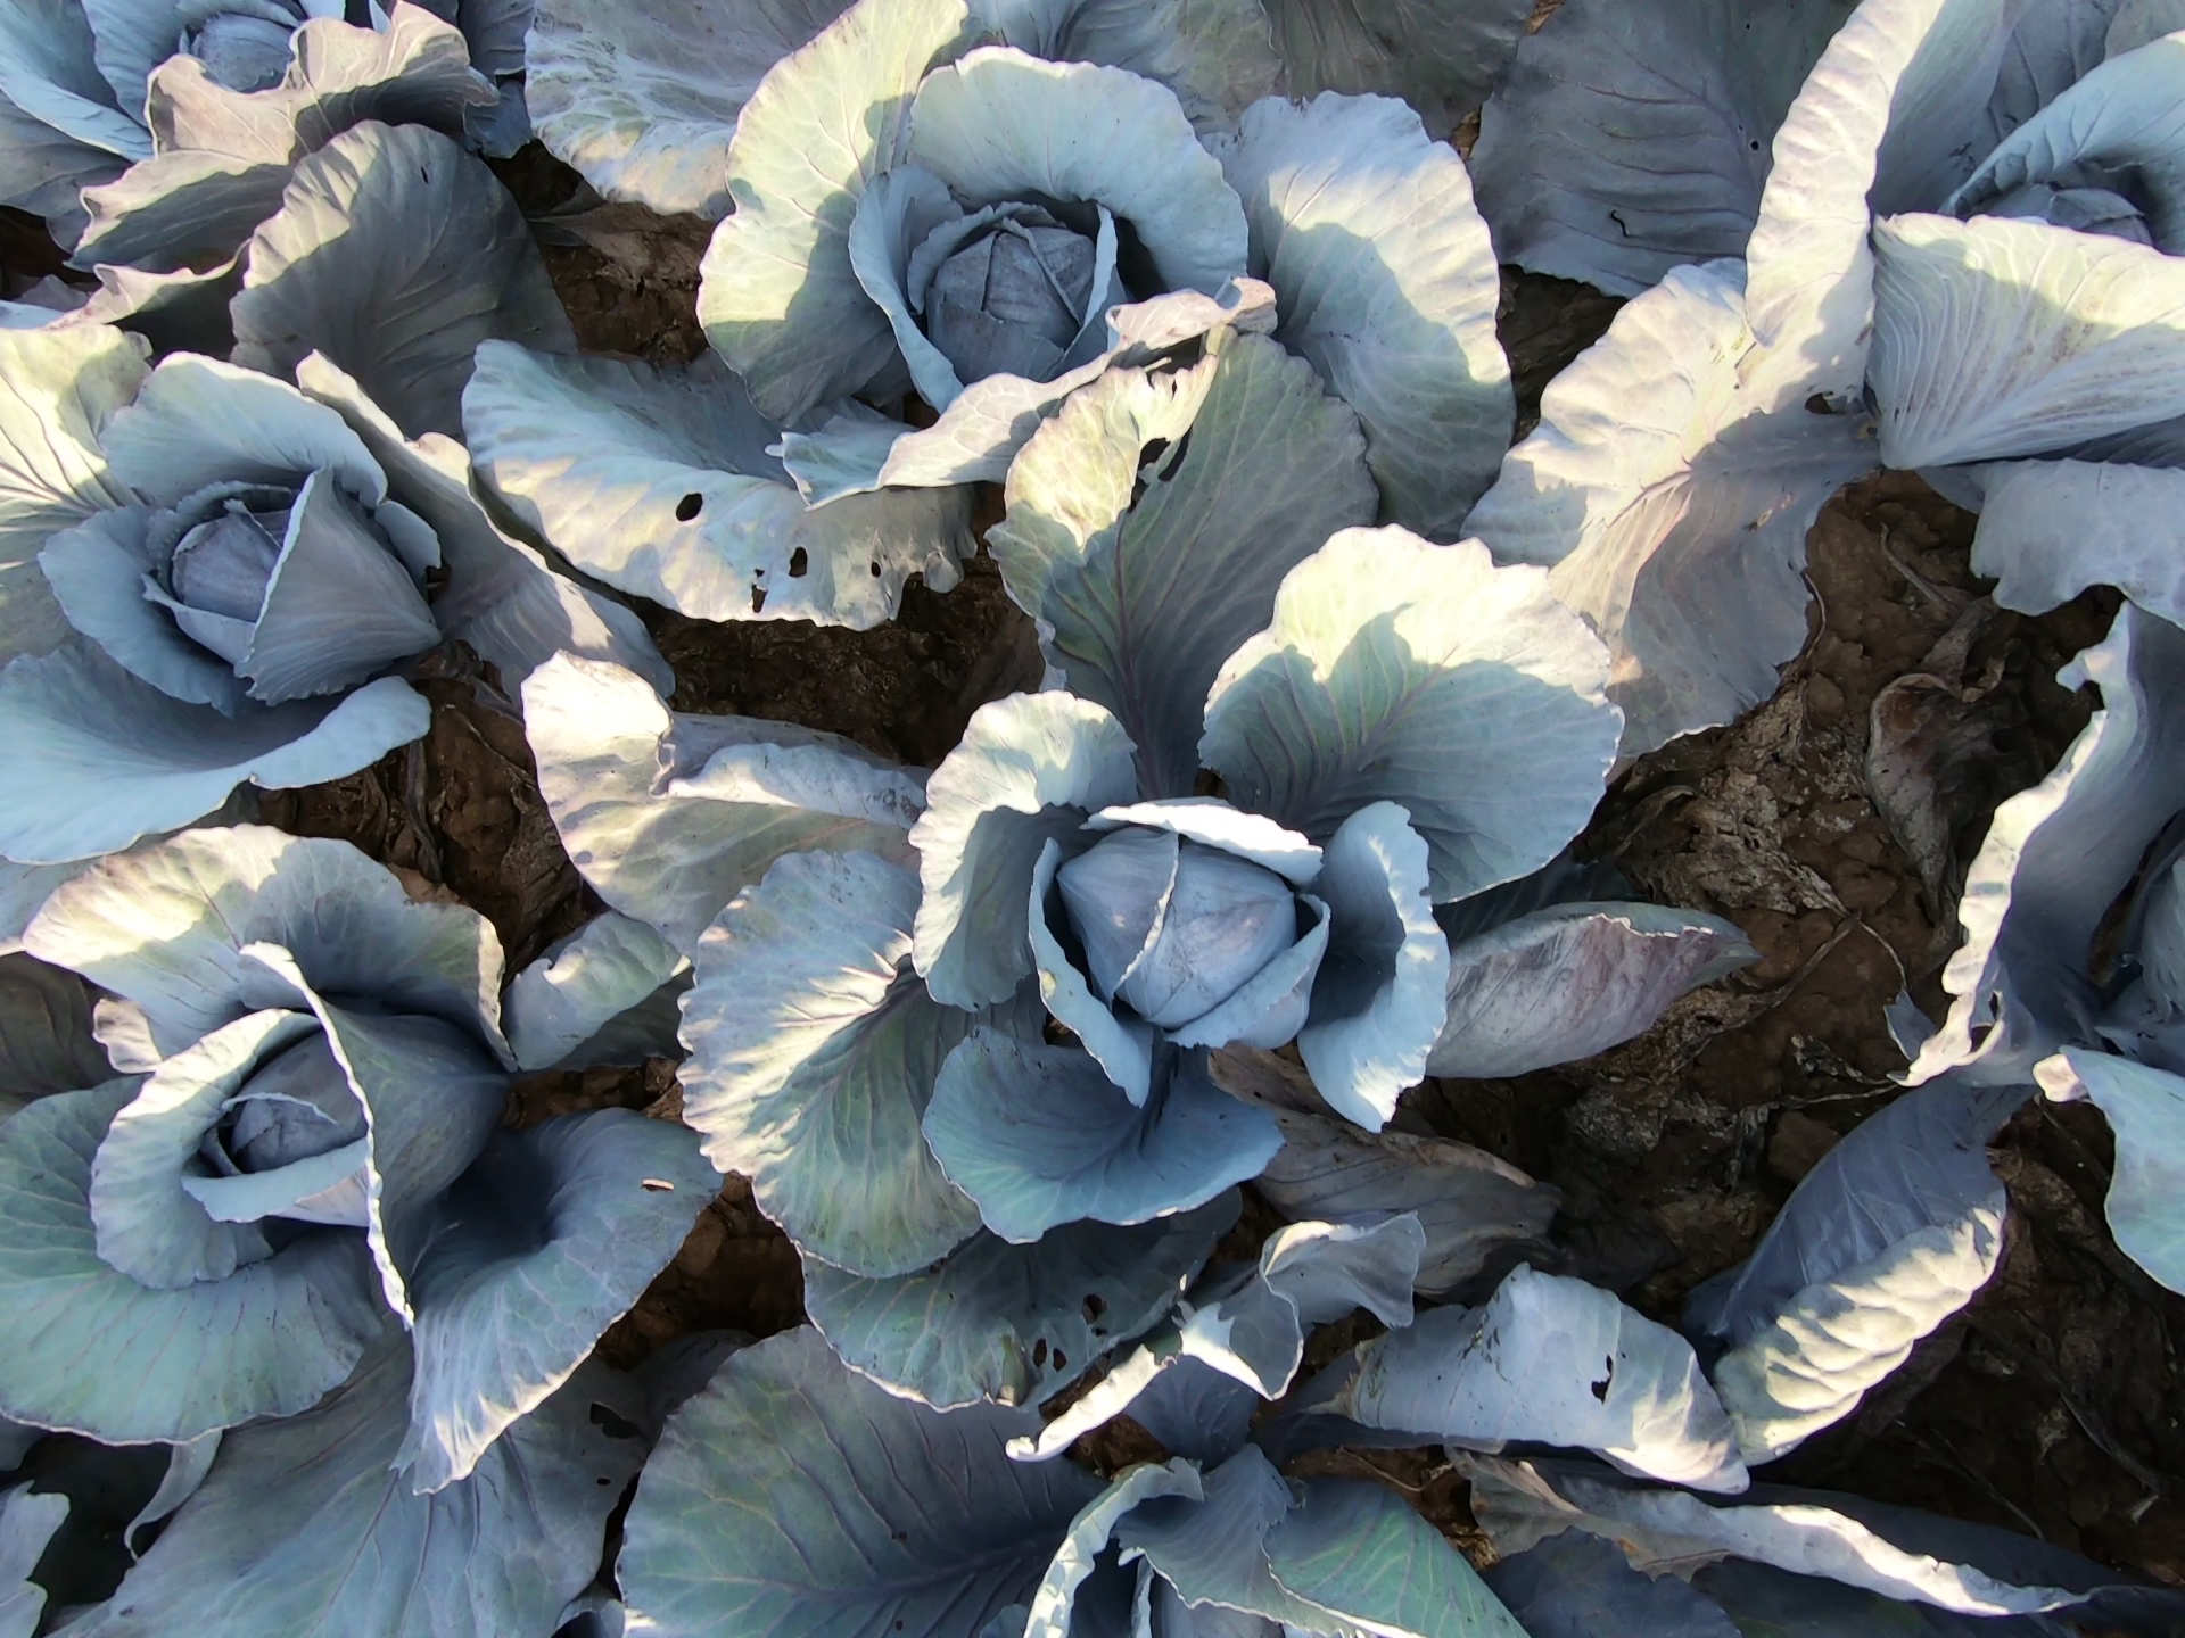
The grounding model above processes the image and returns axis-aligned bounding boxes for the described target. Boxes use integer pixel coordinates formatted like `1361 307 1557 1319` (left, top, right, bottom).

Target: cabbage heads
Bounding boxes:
1143 1507 1322 1637
182 10 344 162
164 511 390 679
1971 174 2165 346
1086 836 1304 1033
224 1028 456 1205
922 222 1118 411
